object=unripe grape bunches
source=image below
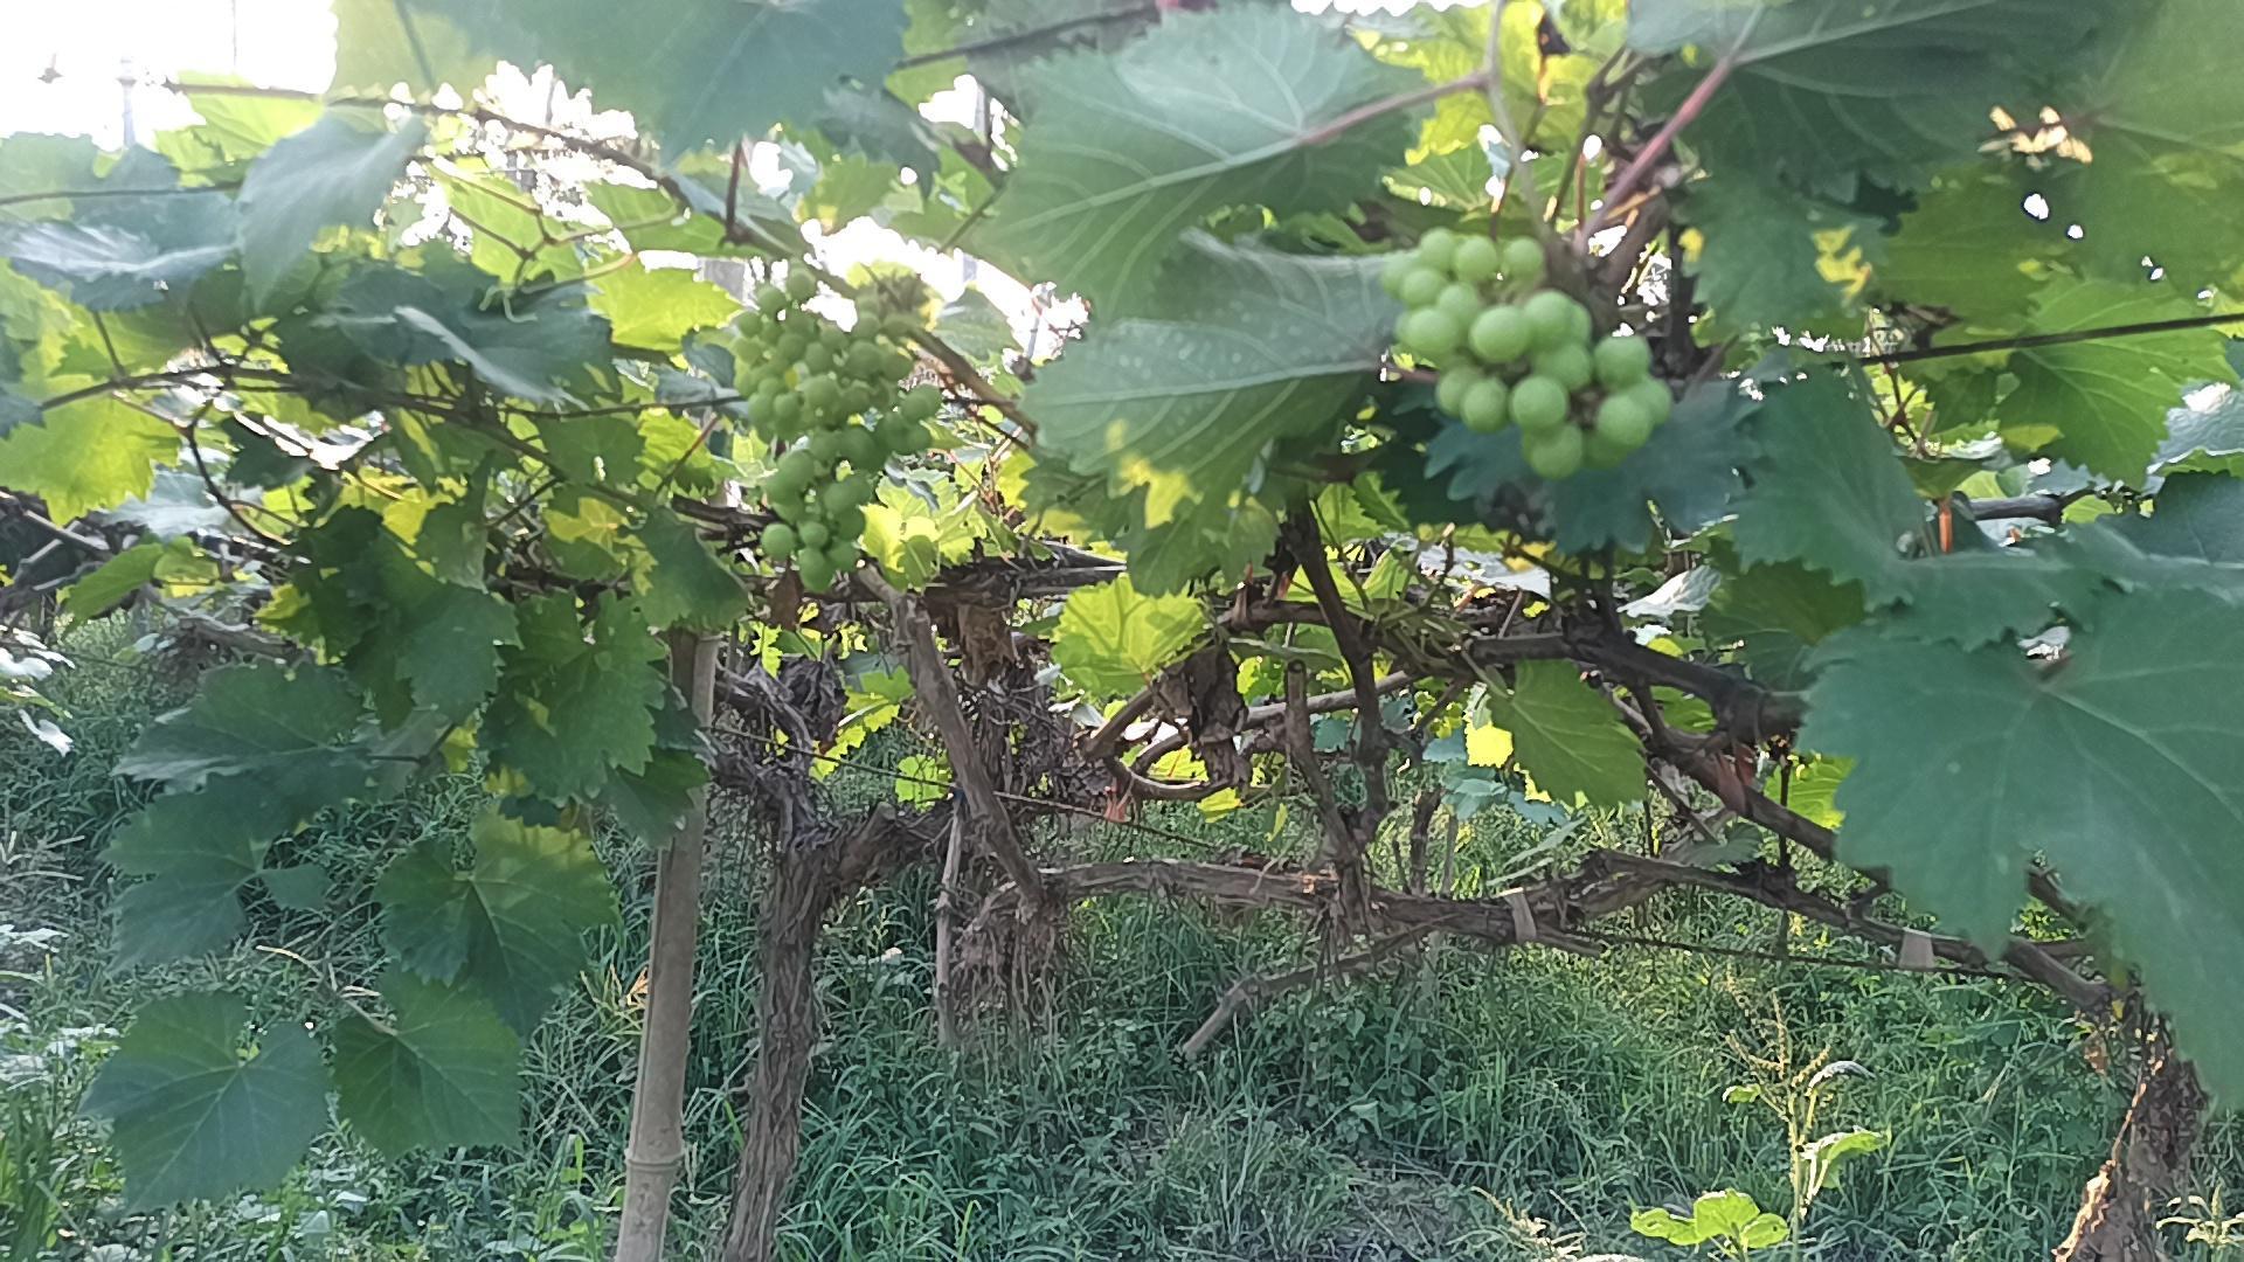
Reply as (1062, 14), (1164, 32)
(1381, 229), (1672, 479)
(726, 268), (941, 589)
